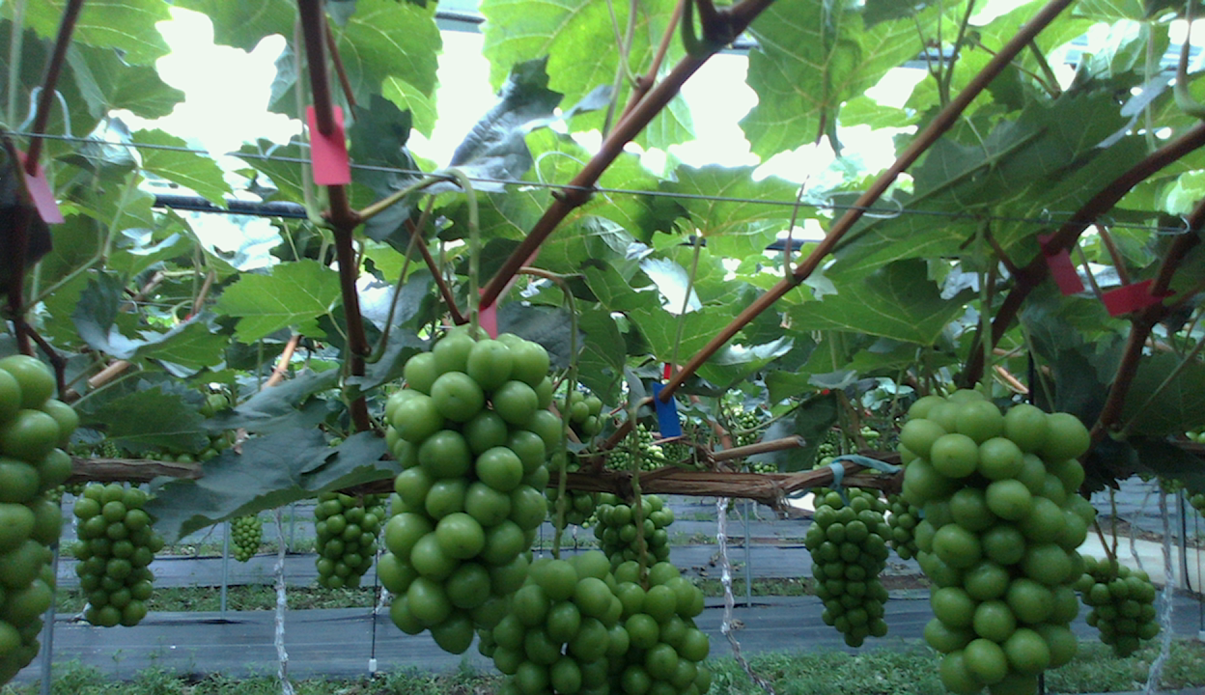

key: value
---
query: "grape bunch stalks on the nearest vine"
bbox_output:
[630,398,649,588]
[449,169,478,337]
[527,268,581,557]
[962,221,994,398]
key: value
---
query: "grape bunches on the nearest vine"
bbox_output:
[899,389,1094,694]
[1,353,77,687]
[611,562,711,694]
[378,323,559,654]
[490,552,631,694]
